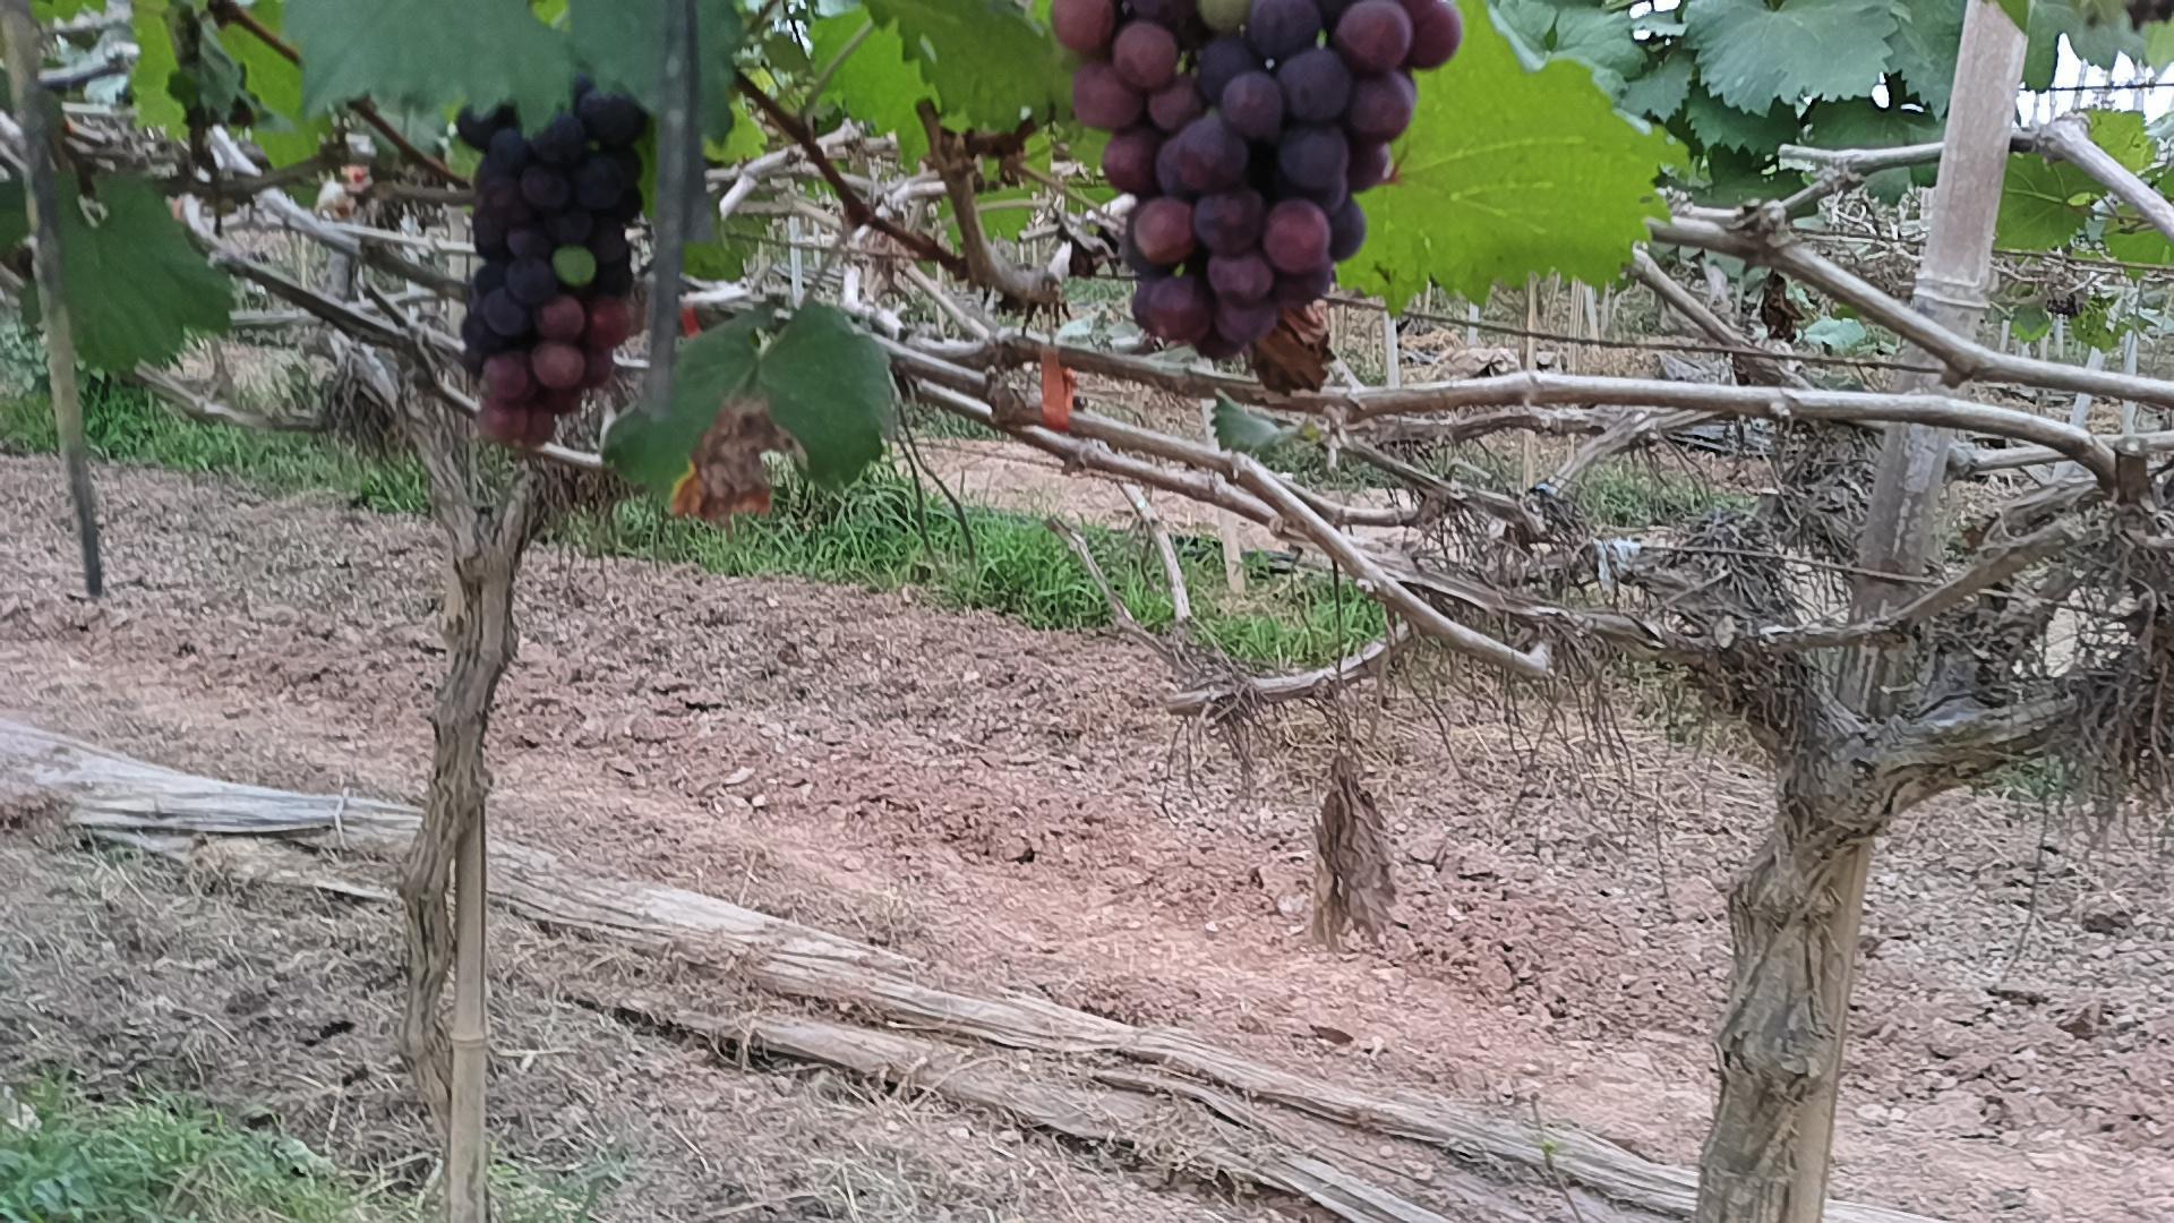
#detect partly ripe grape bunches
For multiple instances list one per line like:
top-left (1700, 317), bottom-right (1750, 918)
top-left (459, 75), bottom-right (648, 447)
top-left (1052, 0), bottom-right (1461, 358)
